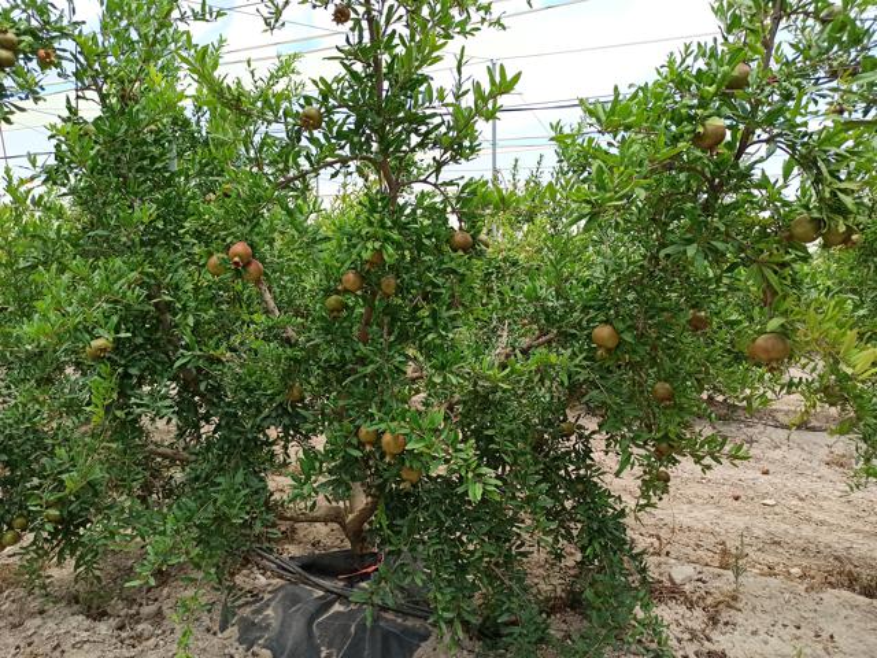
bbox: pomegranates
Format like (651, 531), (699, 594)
(652, 381), (676, 407)
(37, 47), (56, 62)
(381, 432), (406, 465)
(448, 230), (474, 254)
(589, 322), (621, 361)
(299, 107), (323, 132)
(656, 470), (671, 483)
(227, 241), (254, 269)
(559, 421), (576, 437)
(0, 529), (23, 550)
(330, 5), (352, 26)
(726, 62), (751, 88)
(341, 271), (365, 292)
(207, 254), (227, 276)
(288, 385), (303, 400)
(0, 45), (18, 67)
(325, 293), (343, 319)
(652, 443), (671, 461)
(688, 308), (707, 330)
(400, 467), (422, 492)
(0, 30), (18, 49)
(693, 123), (726, 158)
(12, 517), (27, 529)
(358, 426), (378, 452)
(380, 276), (396, 300)
(85, 337), (112, 359)
(362, 252), (384, 273)
(781, 214), (821, 243)
(824, 229), (861, 247)
(750, 333), (791, 373)
(241, 258), (264, 287)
